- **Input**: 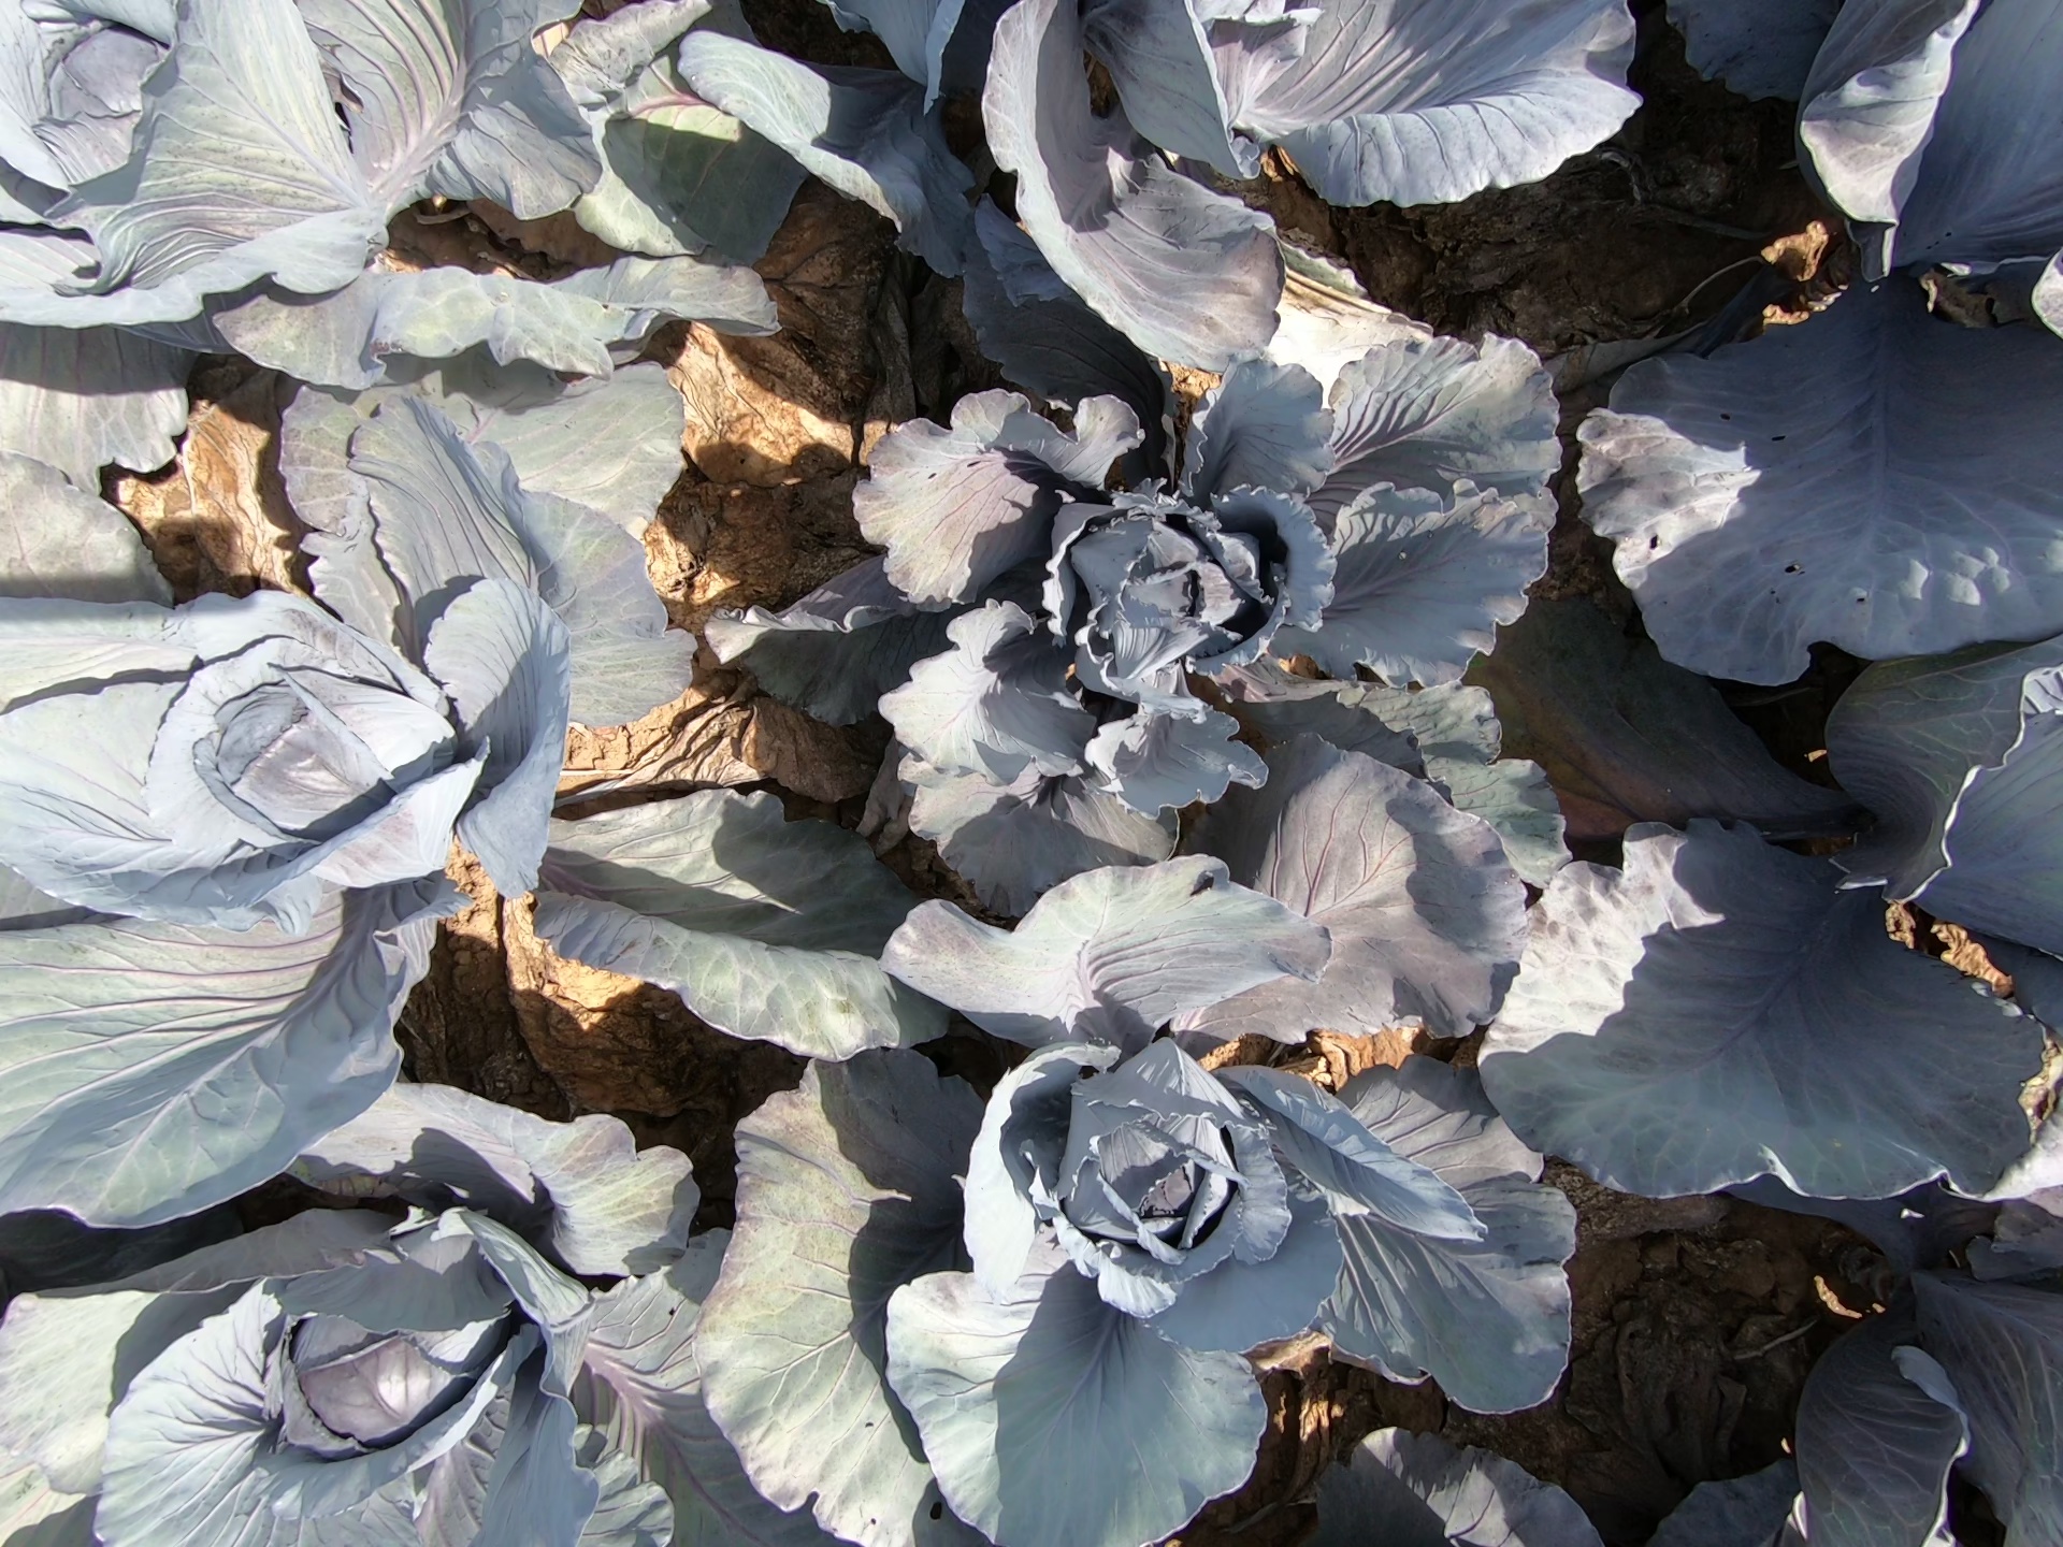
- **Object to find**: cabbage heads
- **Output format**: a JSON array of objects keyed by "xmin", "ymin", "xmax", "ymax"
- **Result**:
[
  {"xmin": 48, "ymin": 13, "xmax": 275, "ymax": 233},
  {"xmin": 279, "ymin": 1244, "xmax": 509, "ymax": 1465},
  {"xmin": 1076, "ymin": 1091, "xmax": 1235, "ymax": 1240},
  {"xmin": 200, "ymin": 682, "xmax": 438, "ymax": 866},
  {"xmin": 1096, "ymin": 526, "xmax": 1237, "ymax": 657},
  {"xmin": 1111, "ymin": 2, "xmax": 1293, "ymax": 113}
]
